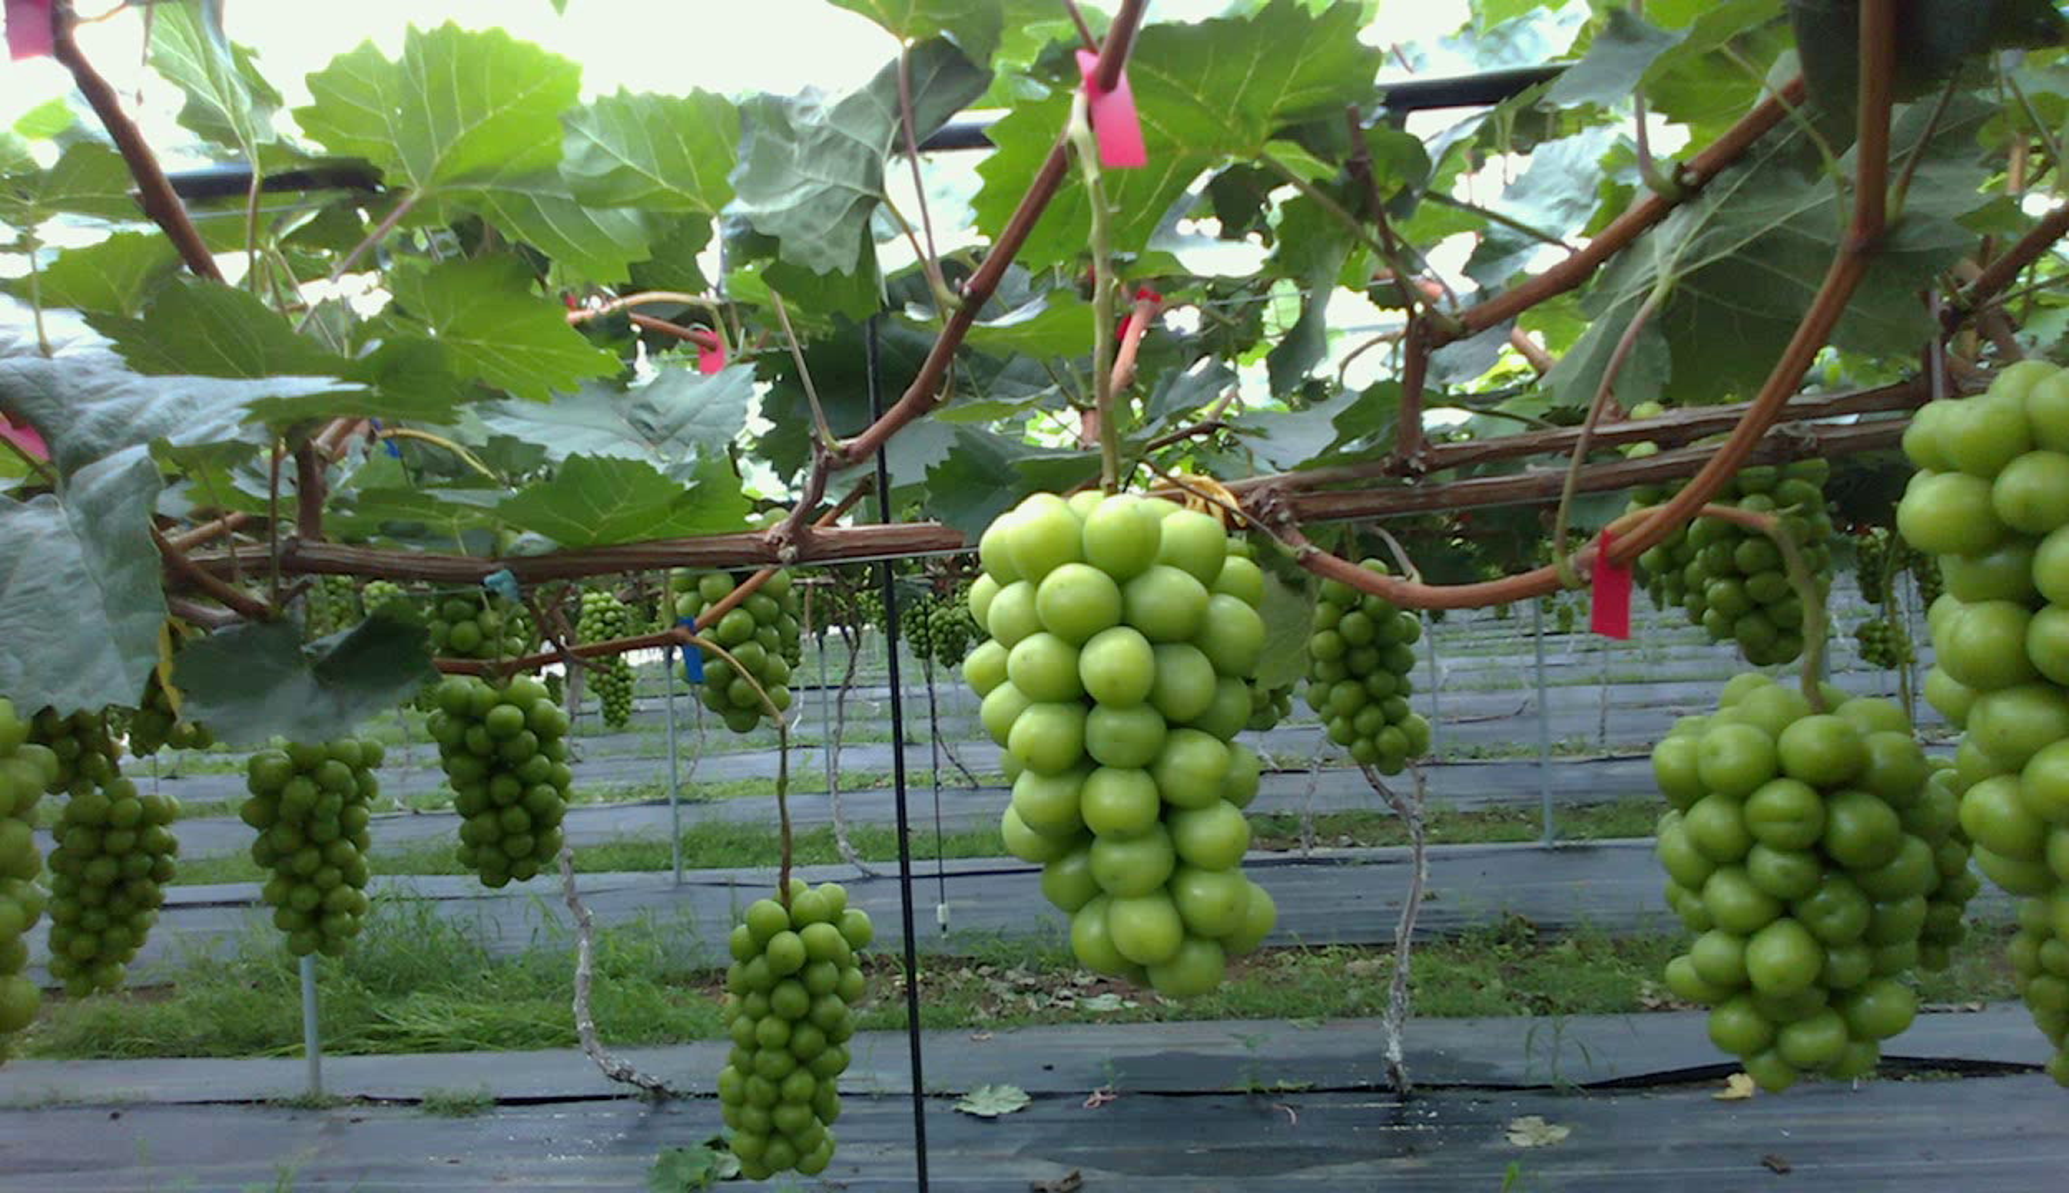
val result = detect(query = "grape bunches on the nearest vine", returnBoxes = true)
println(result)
[1651,671,1955,1094]
[960,489,1277,997]
[1895,360,2067,901]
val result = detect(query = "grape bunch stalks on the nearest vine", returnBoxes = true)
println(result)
[1068,86,1121,490]
[1713,505,1835,711]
